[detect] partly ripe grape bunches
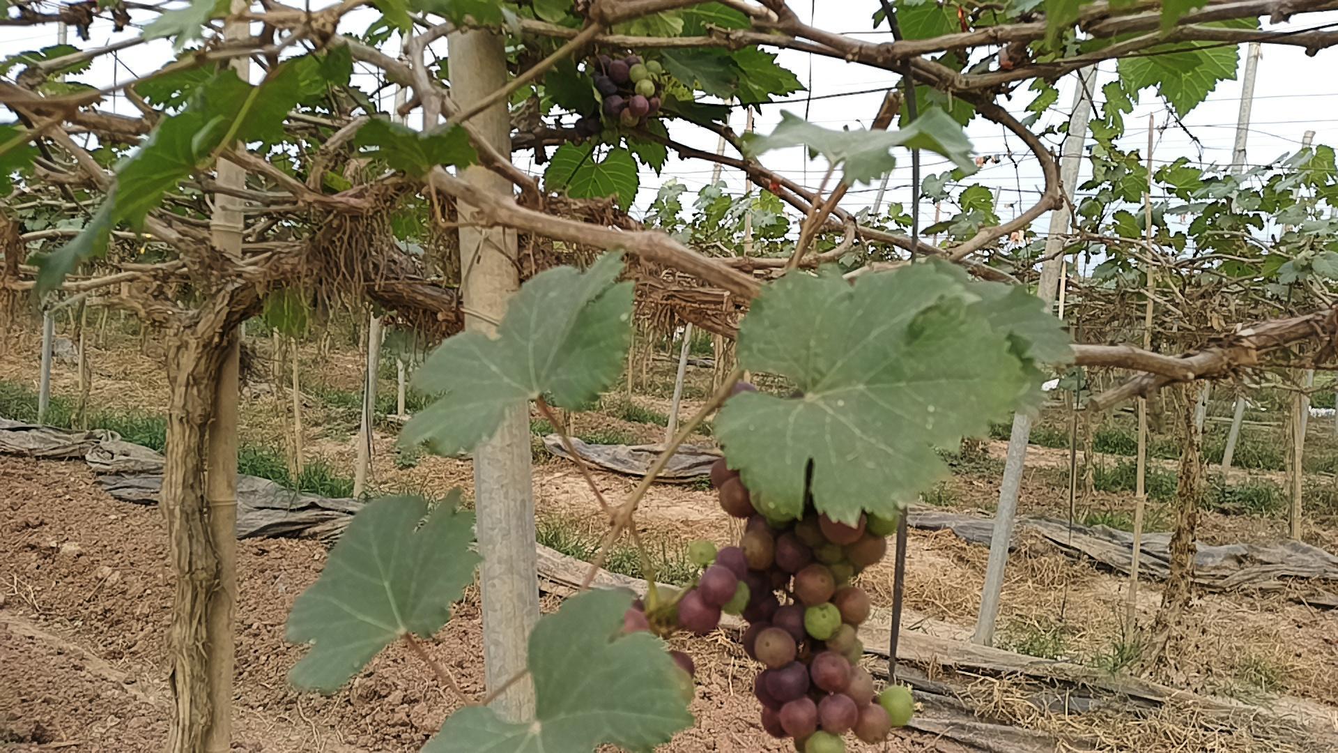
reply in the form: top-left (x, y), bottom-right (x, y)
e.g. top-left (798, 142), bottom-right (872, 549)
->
top-left (622, 539), bottom-right (750, 635)
top-left (576, 52), bottom-right (665, 135)
top-left (709, 459), bottom-right (913, 752)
